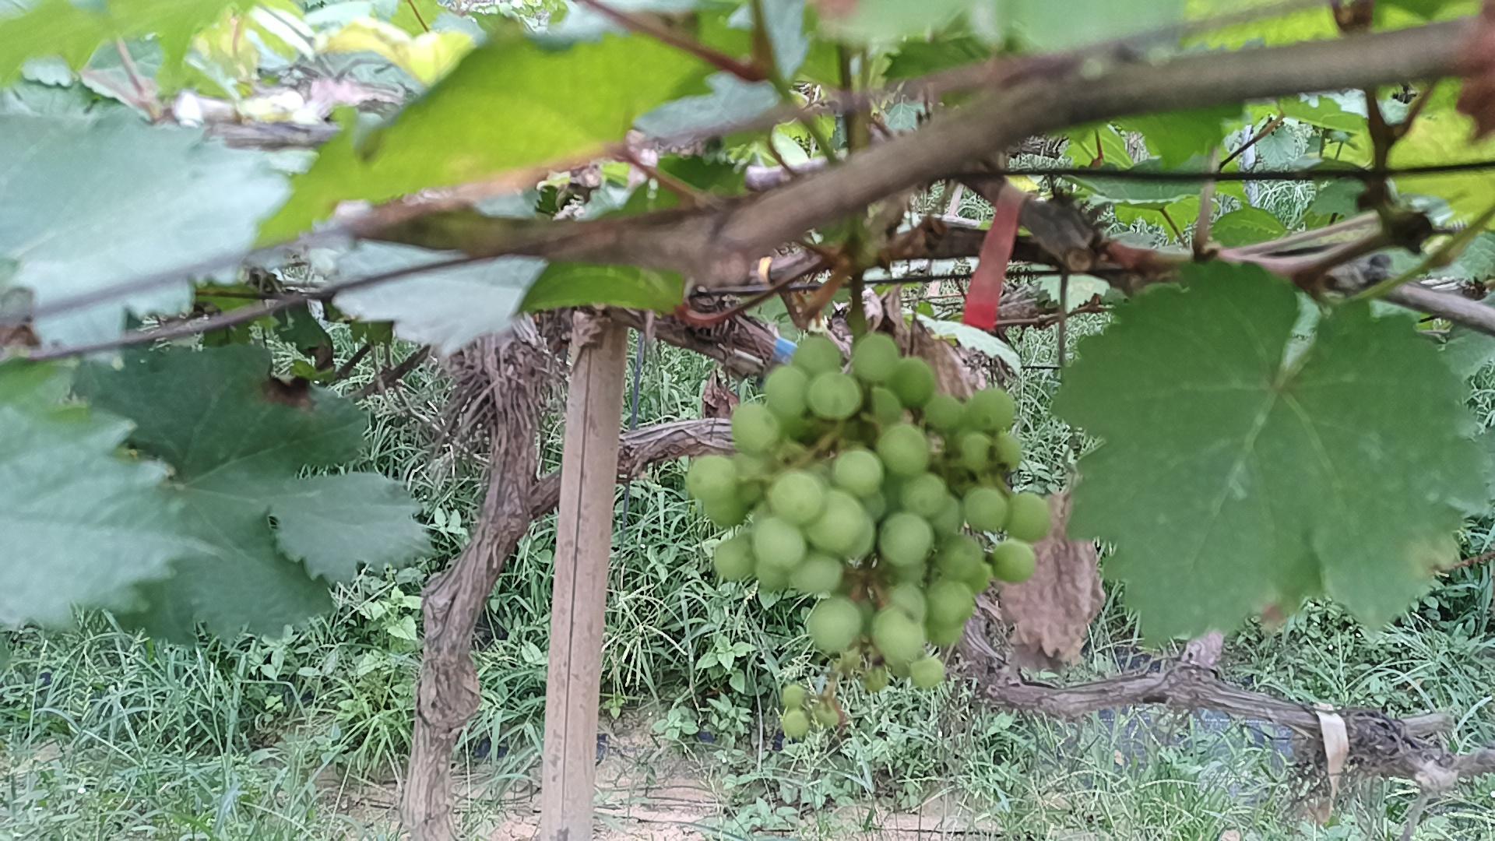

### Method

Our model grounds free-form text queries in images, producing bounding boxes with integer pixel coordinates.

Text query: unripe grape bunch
[687,334,1049,737]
